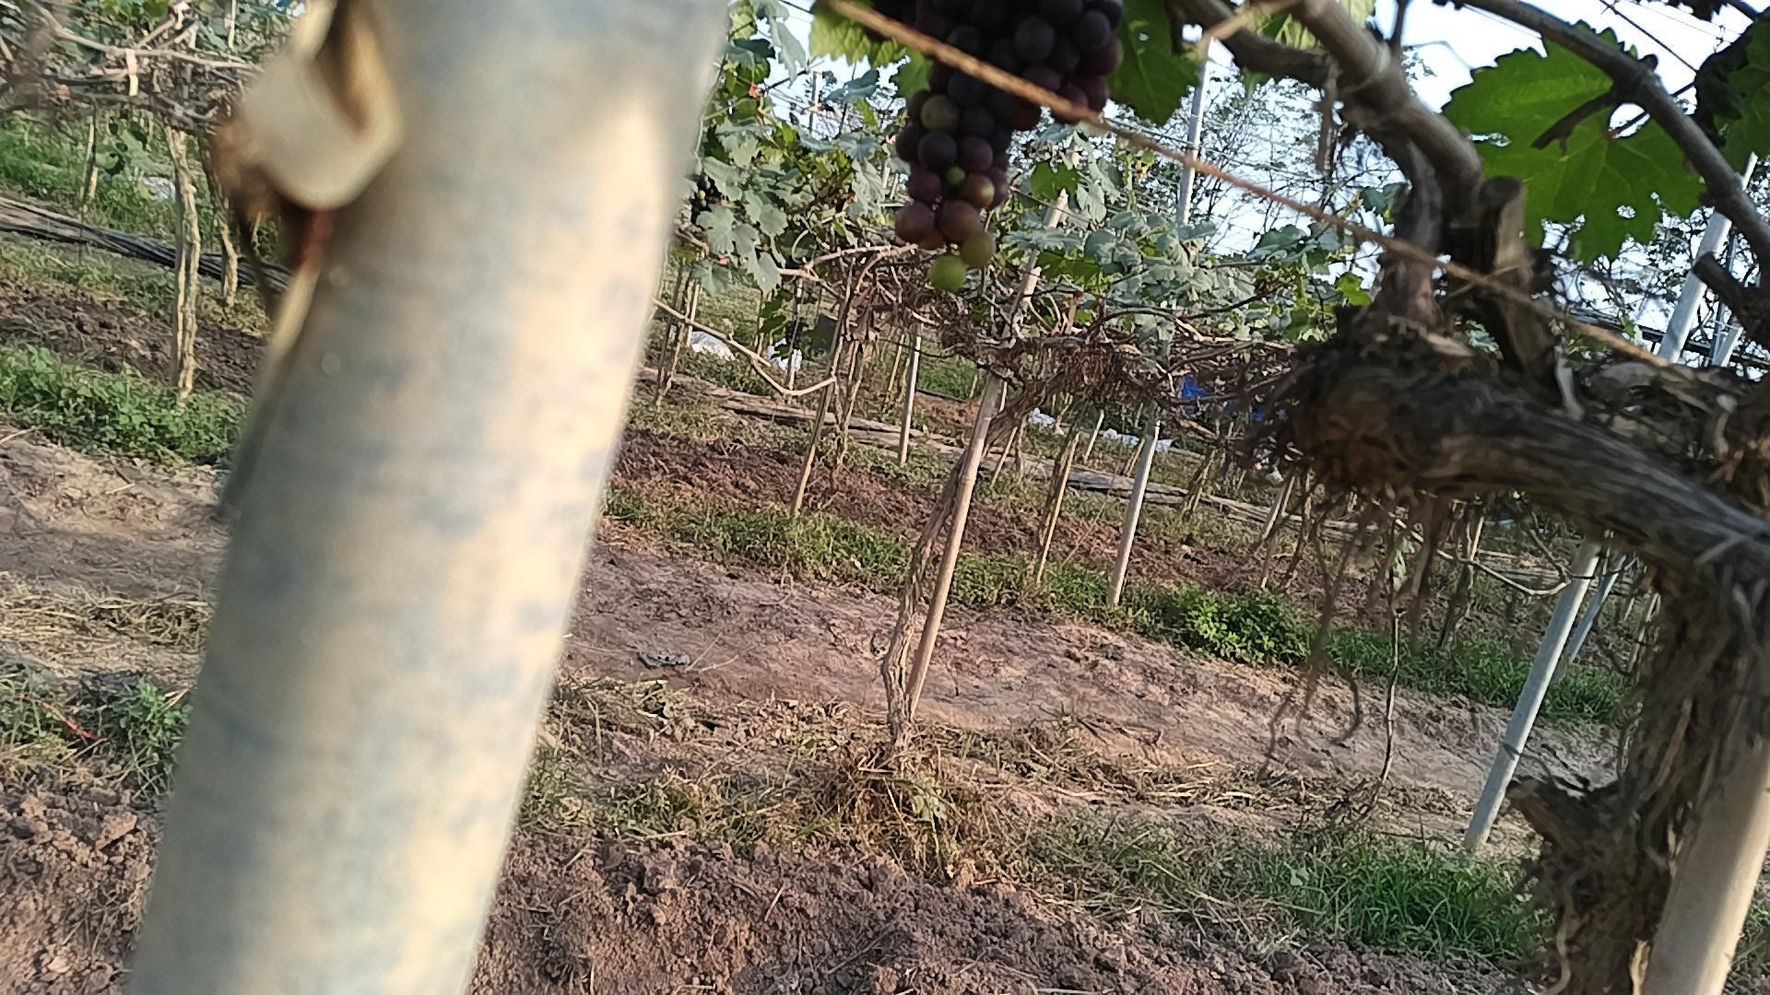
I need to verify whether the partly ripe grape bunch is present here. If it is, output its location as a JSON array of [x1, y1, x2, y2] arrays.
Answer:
[[863, 0, 1125, 291]]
